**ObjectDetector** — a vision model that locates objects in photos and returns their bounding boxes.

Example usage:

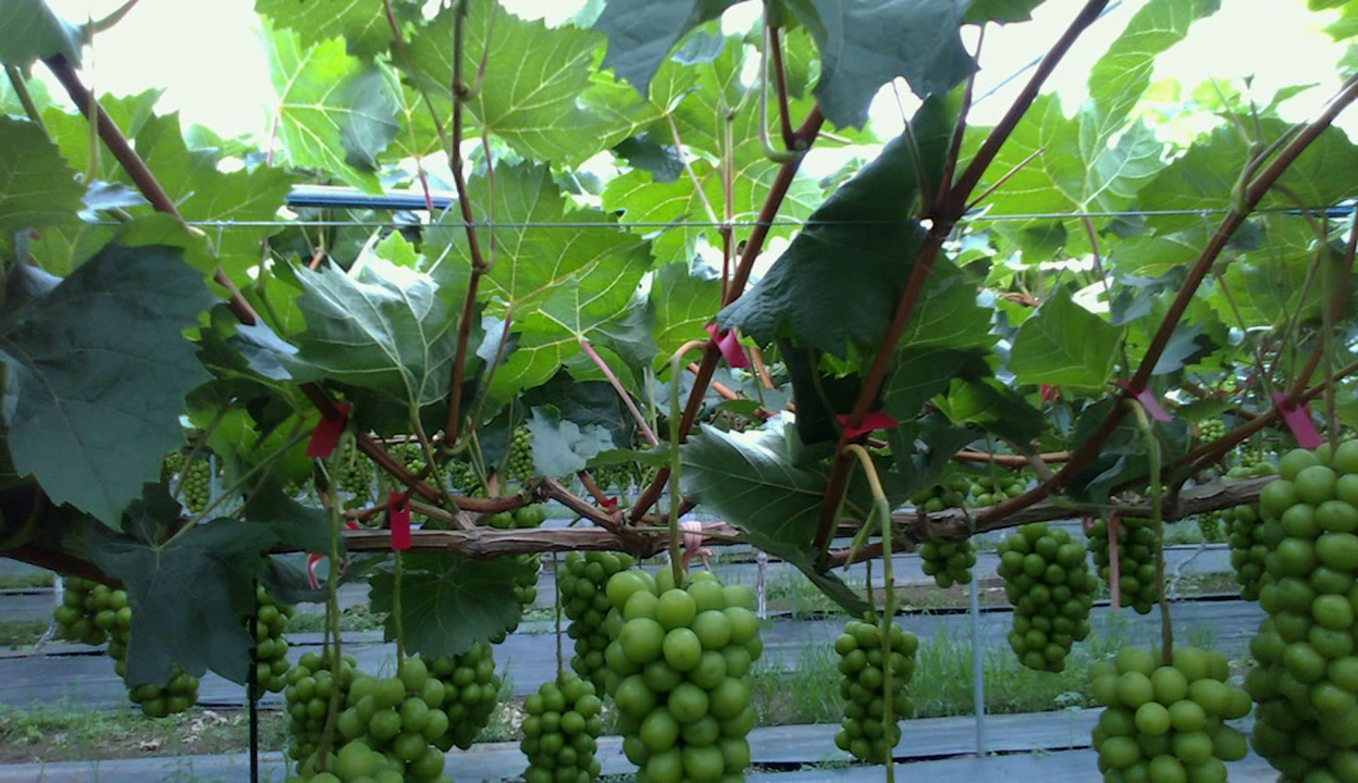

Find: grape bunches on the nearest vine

[337,656,452,781]
[282,739,403,782]
[1243,667,1357,782]
[605,565,765,782]
[1087,646,1252,782]
[1251,439,1357,747]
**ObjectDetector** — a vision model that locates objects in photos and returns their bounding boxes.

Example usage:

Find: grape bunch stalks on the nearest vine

[393,550,403,674]
[1124,397,1173,666]
[668,340,705,588]
[1273,185,1338,469]
[311,422,357,773]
